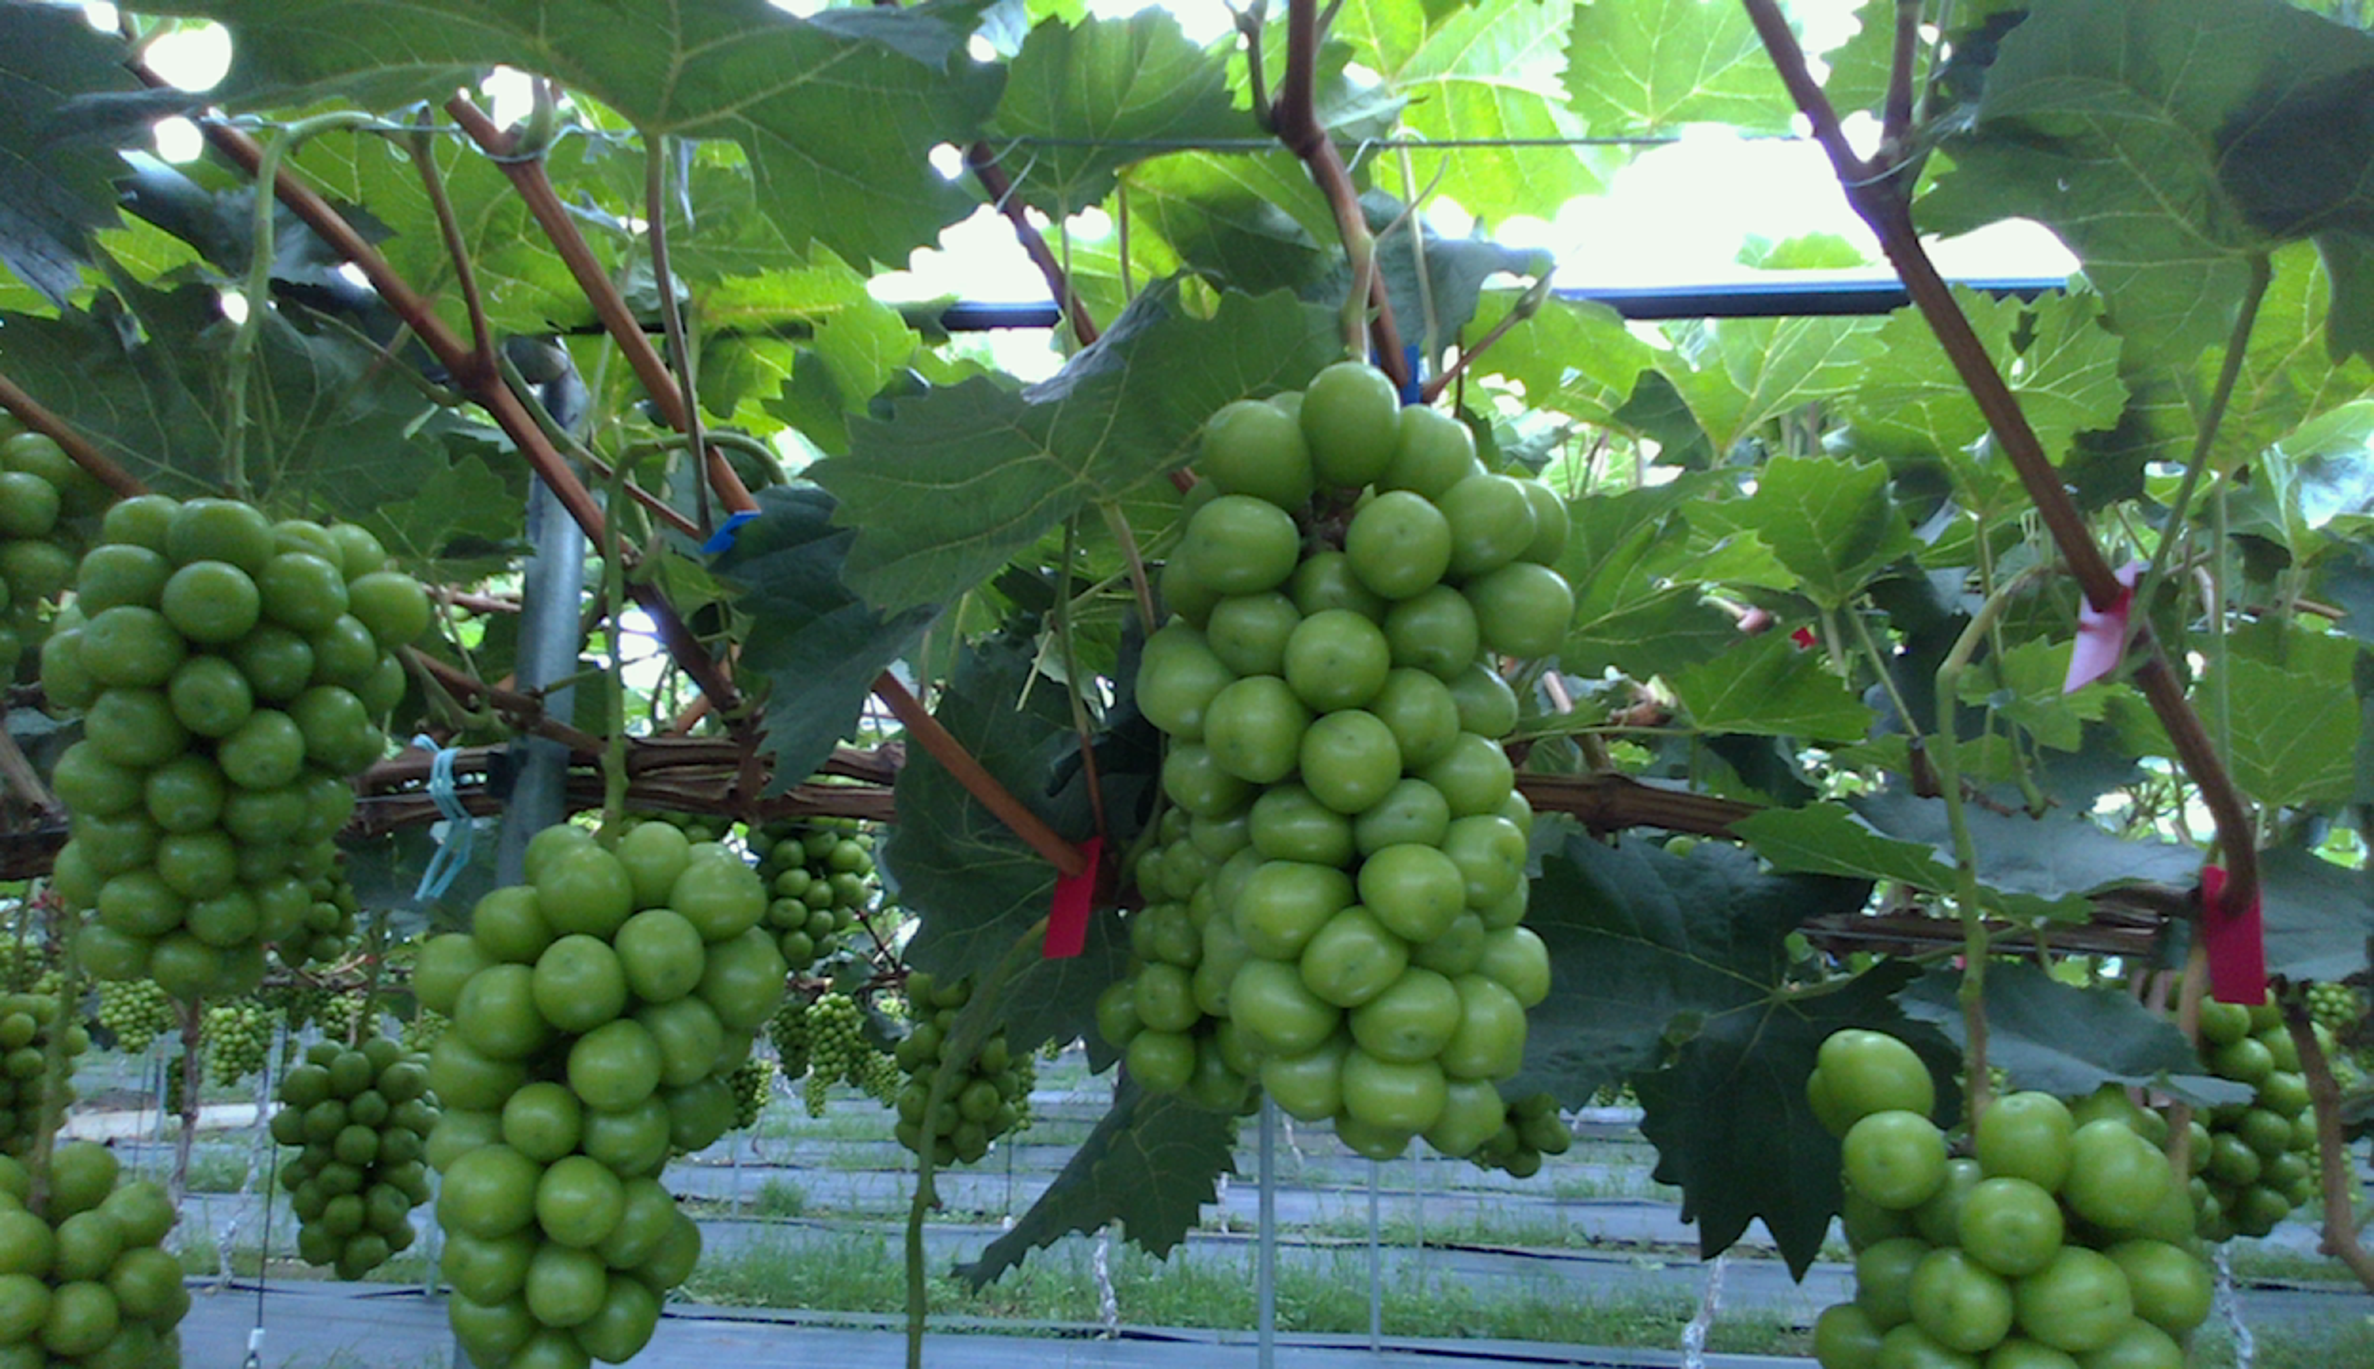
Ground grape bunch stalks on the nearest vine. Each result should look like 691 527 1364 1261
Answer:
223 110 396 502
1935 555 2068 1118
1269 2 1375 361
19 905 80 1217
601 434 691 856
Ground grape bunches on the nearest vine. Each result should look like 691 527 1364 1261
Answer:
0 1143 192 1367
411 816 788 1367
42 492 432 998
1134 361 1575 1162
1805 1029 2212 1367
